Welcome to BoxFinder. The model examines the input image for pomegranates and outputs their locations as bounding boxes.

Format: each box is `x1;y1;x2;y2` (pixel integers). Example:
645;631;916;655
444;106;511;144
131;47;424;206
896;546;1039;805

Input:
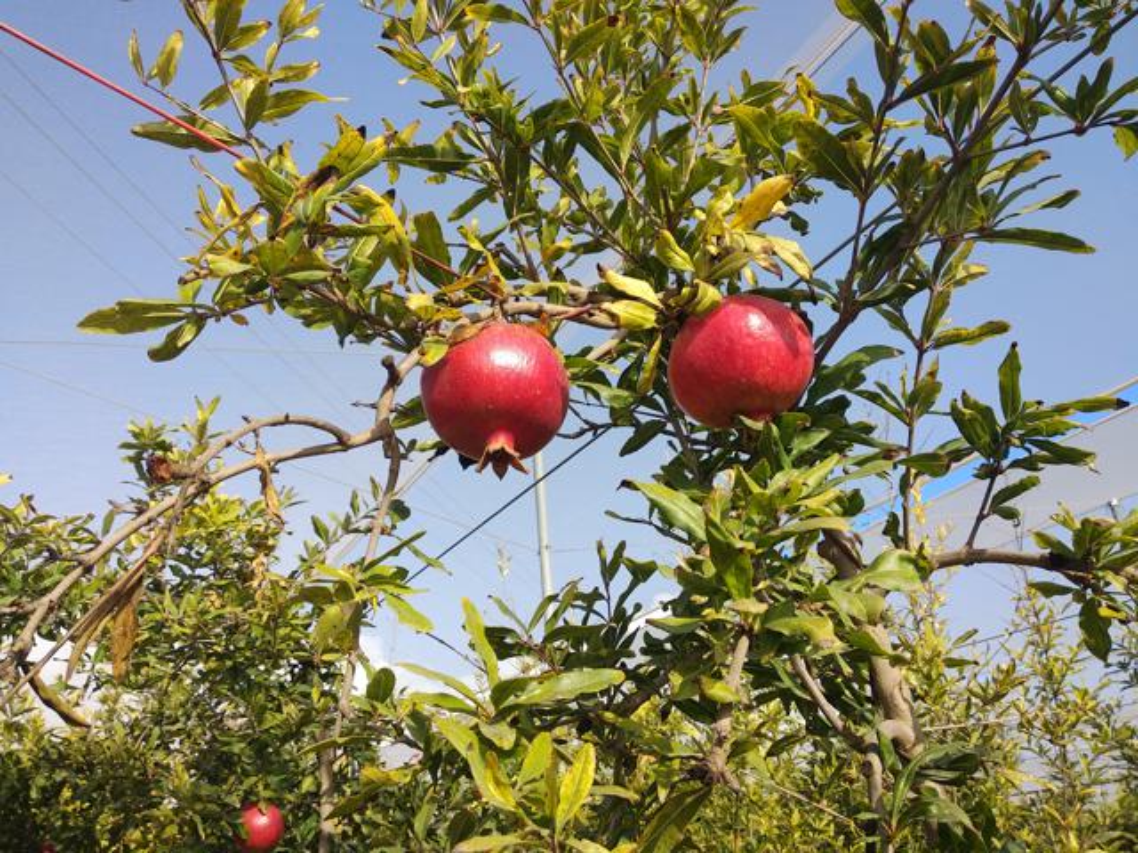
669;293;814;425
420;322;571;480
233;803;284;853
